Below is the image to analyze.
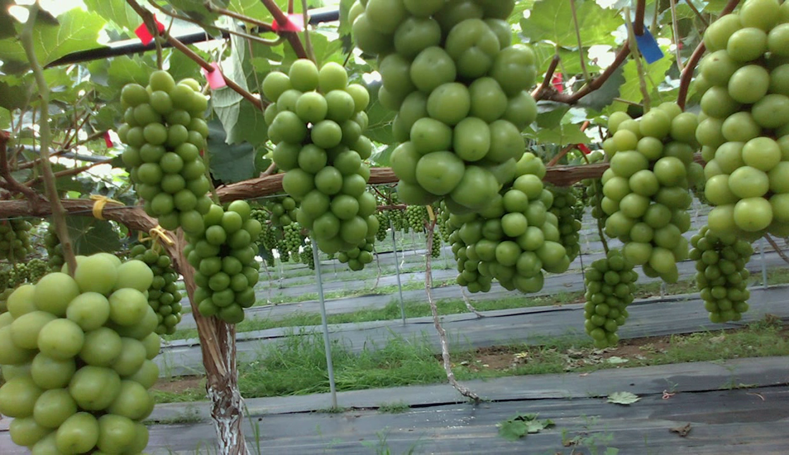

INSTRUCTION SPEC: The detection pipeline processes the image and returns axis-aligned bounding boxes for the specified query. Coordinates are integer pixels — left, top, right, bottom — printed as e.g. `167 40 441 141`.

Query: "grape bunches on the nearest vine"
262 59 379 254
0 253 160 454
118 70 212 234
448 153 570 293
347 0 539 215
182 199 261 323
695 0 788 242
601 101 697 284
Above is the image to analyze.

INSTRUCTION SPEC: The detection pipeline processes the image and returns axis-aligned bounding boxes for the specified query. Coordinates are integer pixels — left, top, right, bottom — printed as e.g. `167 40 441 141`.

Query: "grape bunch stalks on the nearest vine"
623 9 651 113
144 9 161 70
15 2 78 275
204 140 220 205
301 0 315 61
